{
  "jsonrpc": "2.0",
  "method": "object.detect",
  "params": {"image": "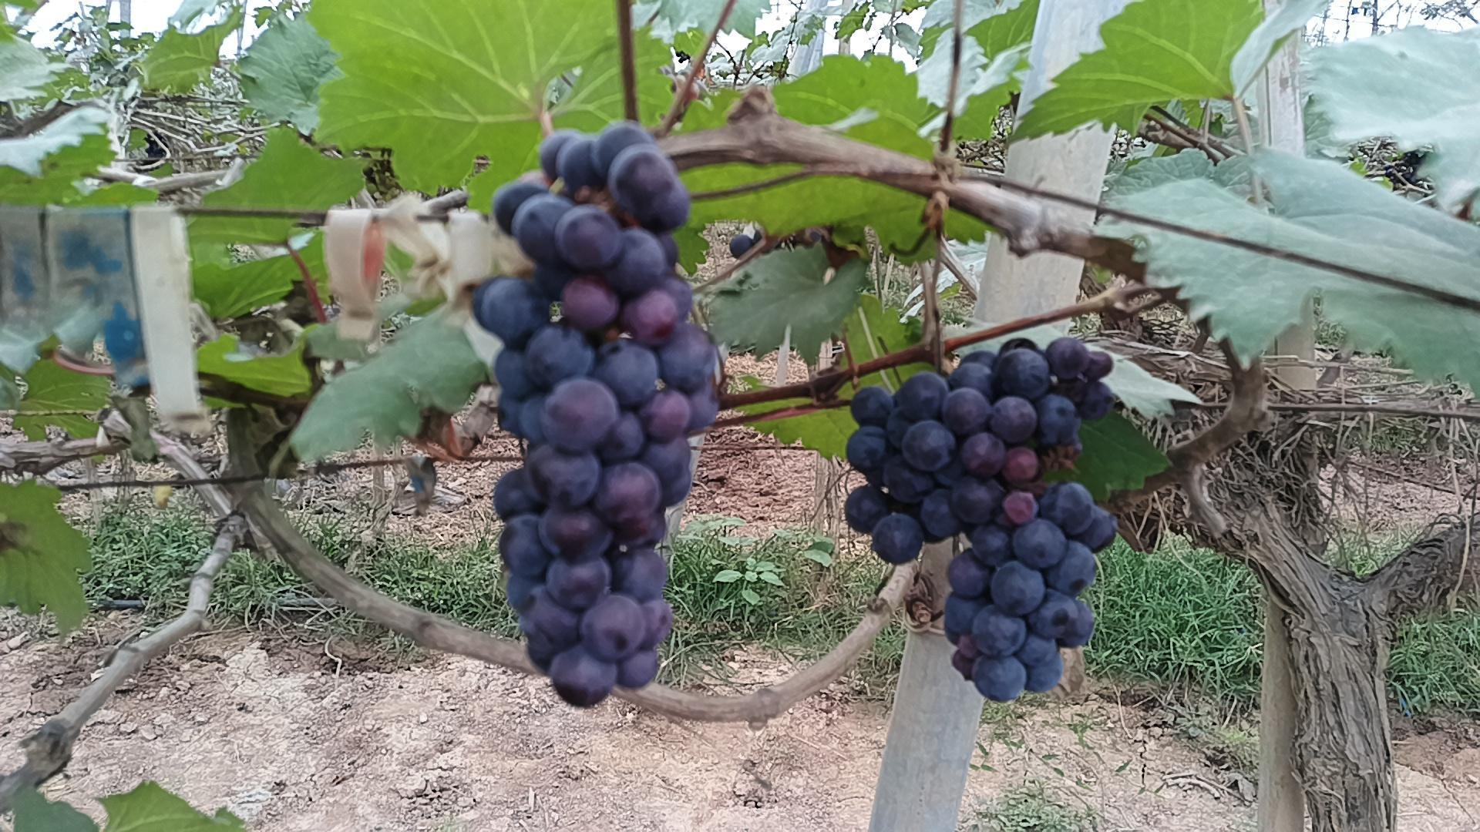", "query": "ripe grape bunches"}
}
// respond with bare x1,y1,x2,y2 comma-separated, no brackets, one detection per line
473,122,717,706
728,223,767,260
846,337,1115,701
